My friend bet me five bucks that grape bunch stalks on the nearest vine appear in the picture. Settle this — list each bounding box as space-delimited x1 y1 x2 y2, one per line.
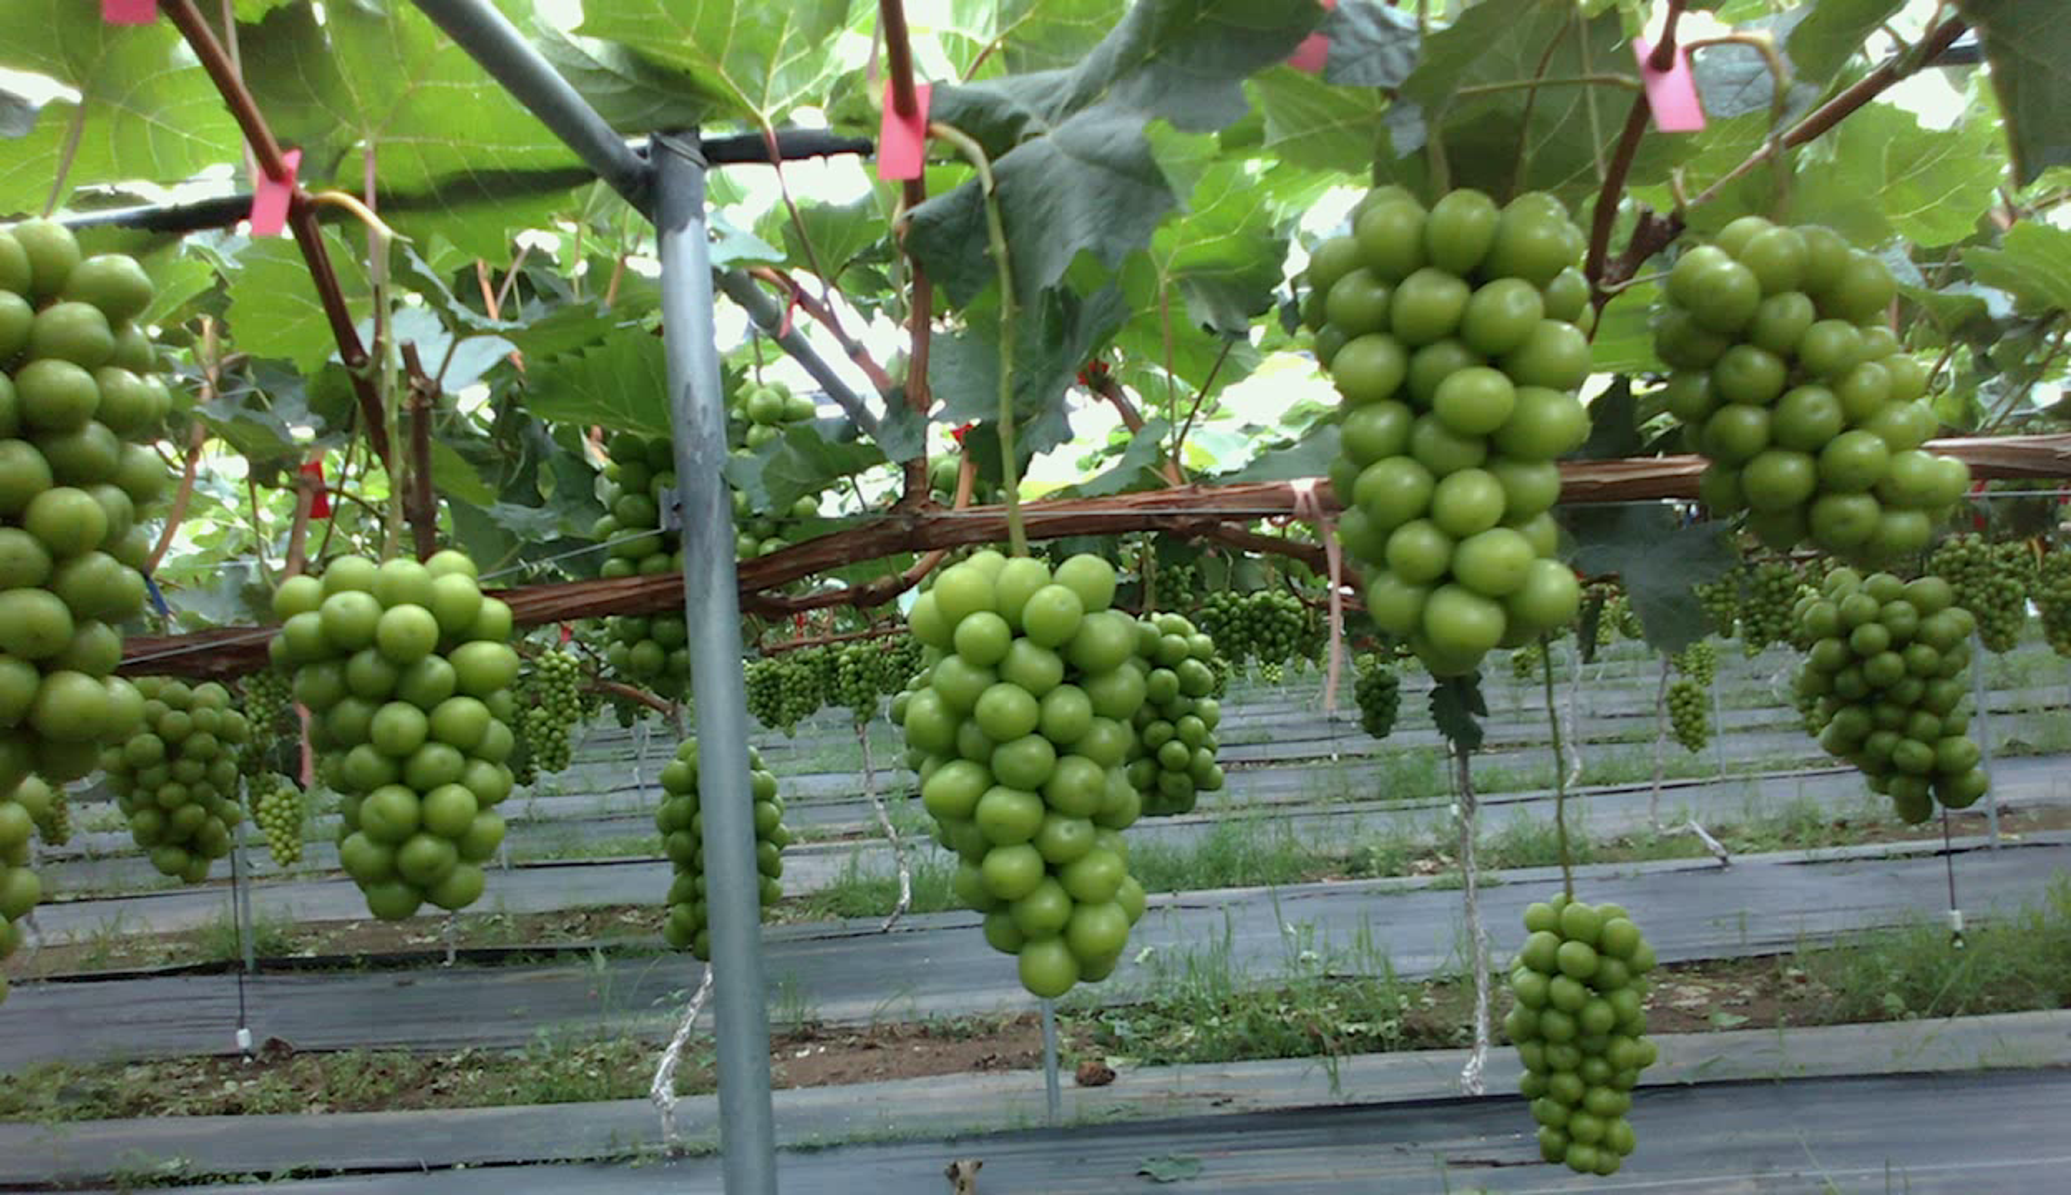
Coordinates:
1683 30 1791 226
1427 123 1450 209
928 121 1031 558
307 191 405 563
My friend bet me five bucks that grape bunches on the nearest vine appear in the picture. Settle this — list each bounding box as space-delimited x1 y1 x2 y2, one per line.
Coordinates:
1299 188 1593 679
267 551 521 924
1654 216 1966 573
906 551 1145 999
0 216 173 803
